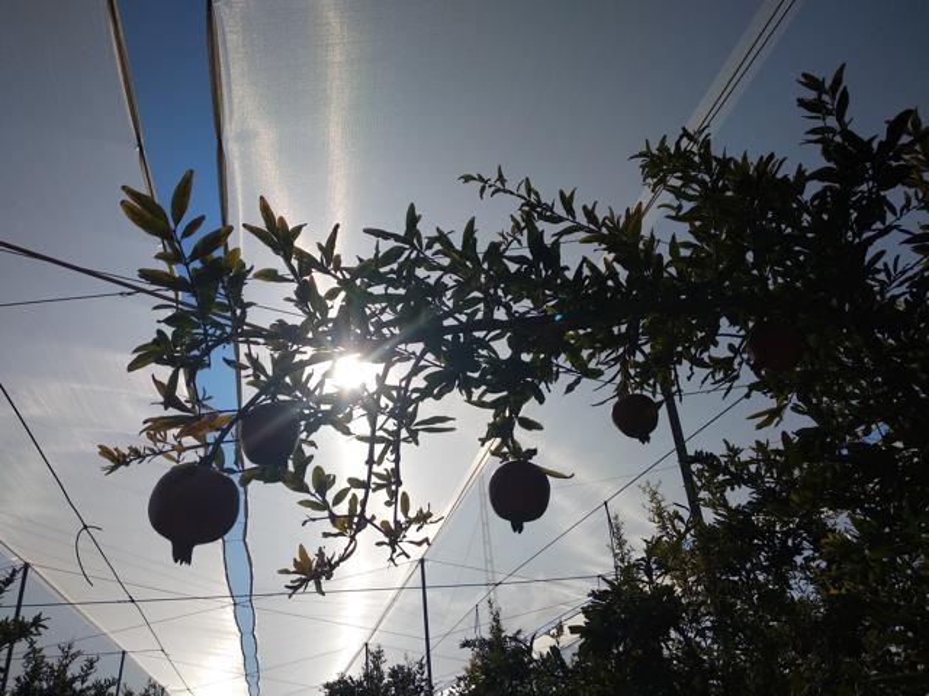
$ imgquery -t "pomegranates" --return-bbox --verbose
[613,391,659,445]
[746,319,803,376]
[241,402,300,470]
[147,457,241,565]
[488,461,550,534]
